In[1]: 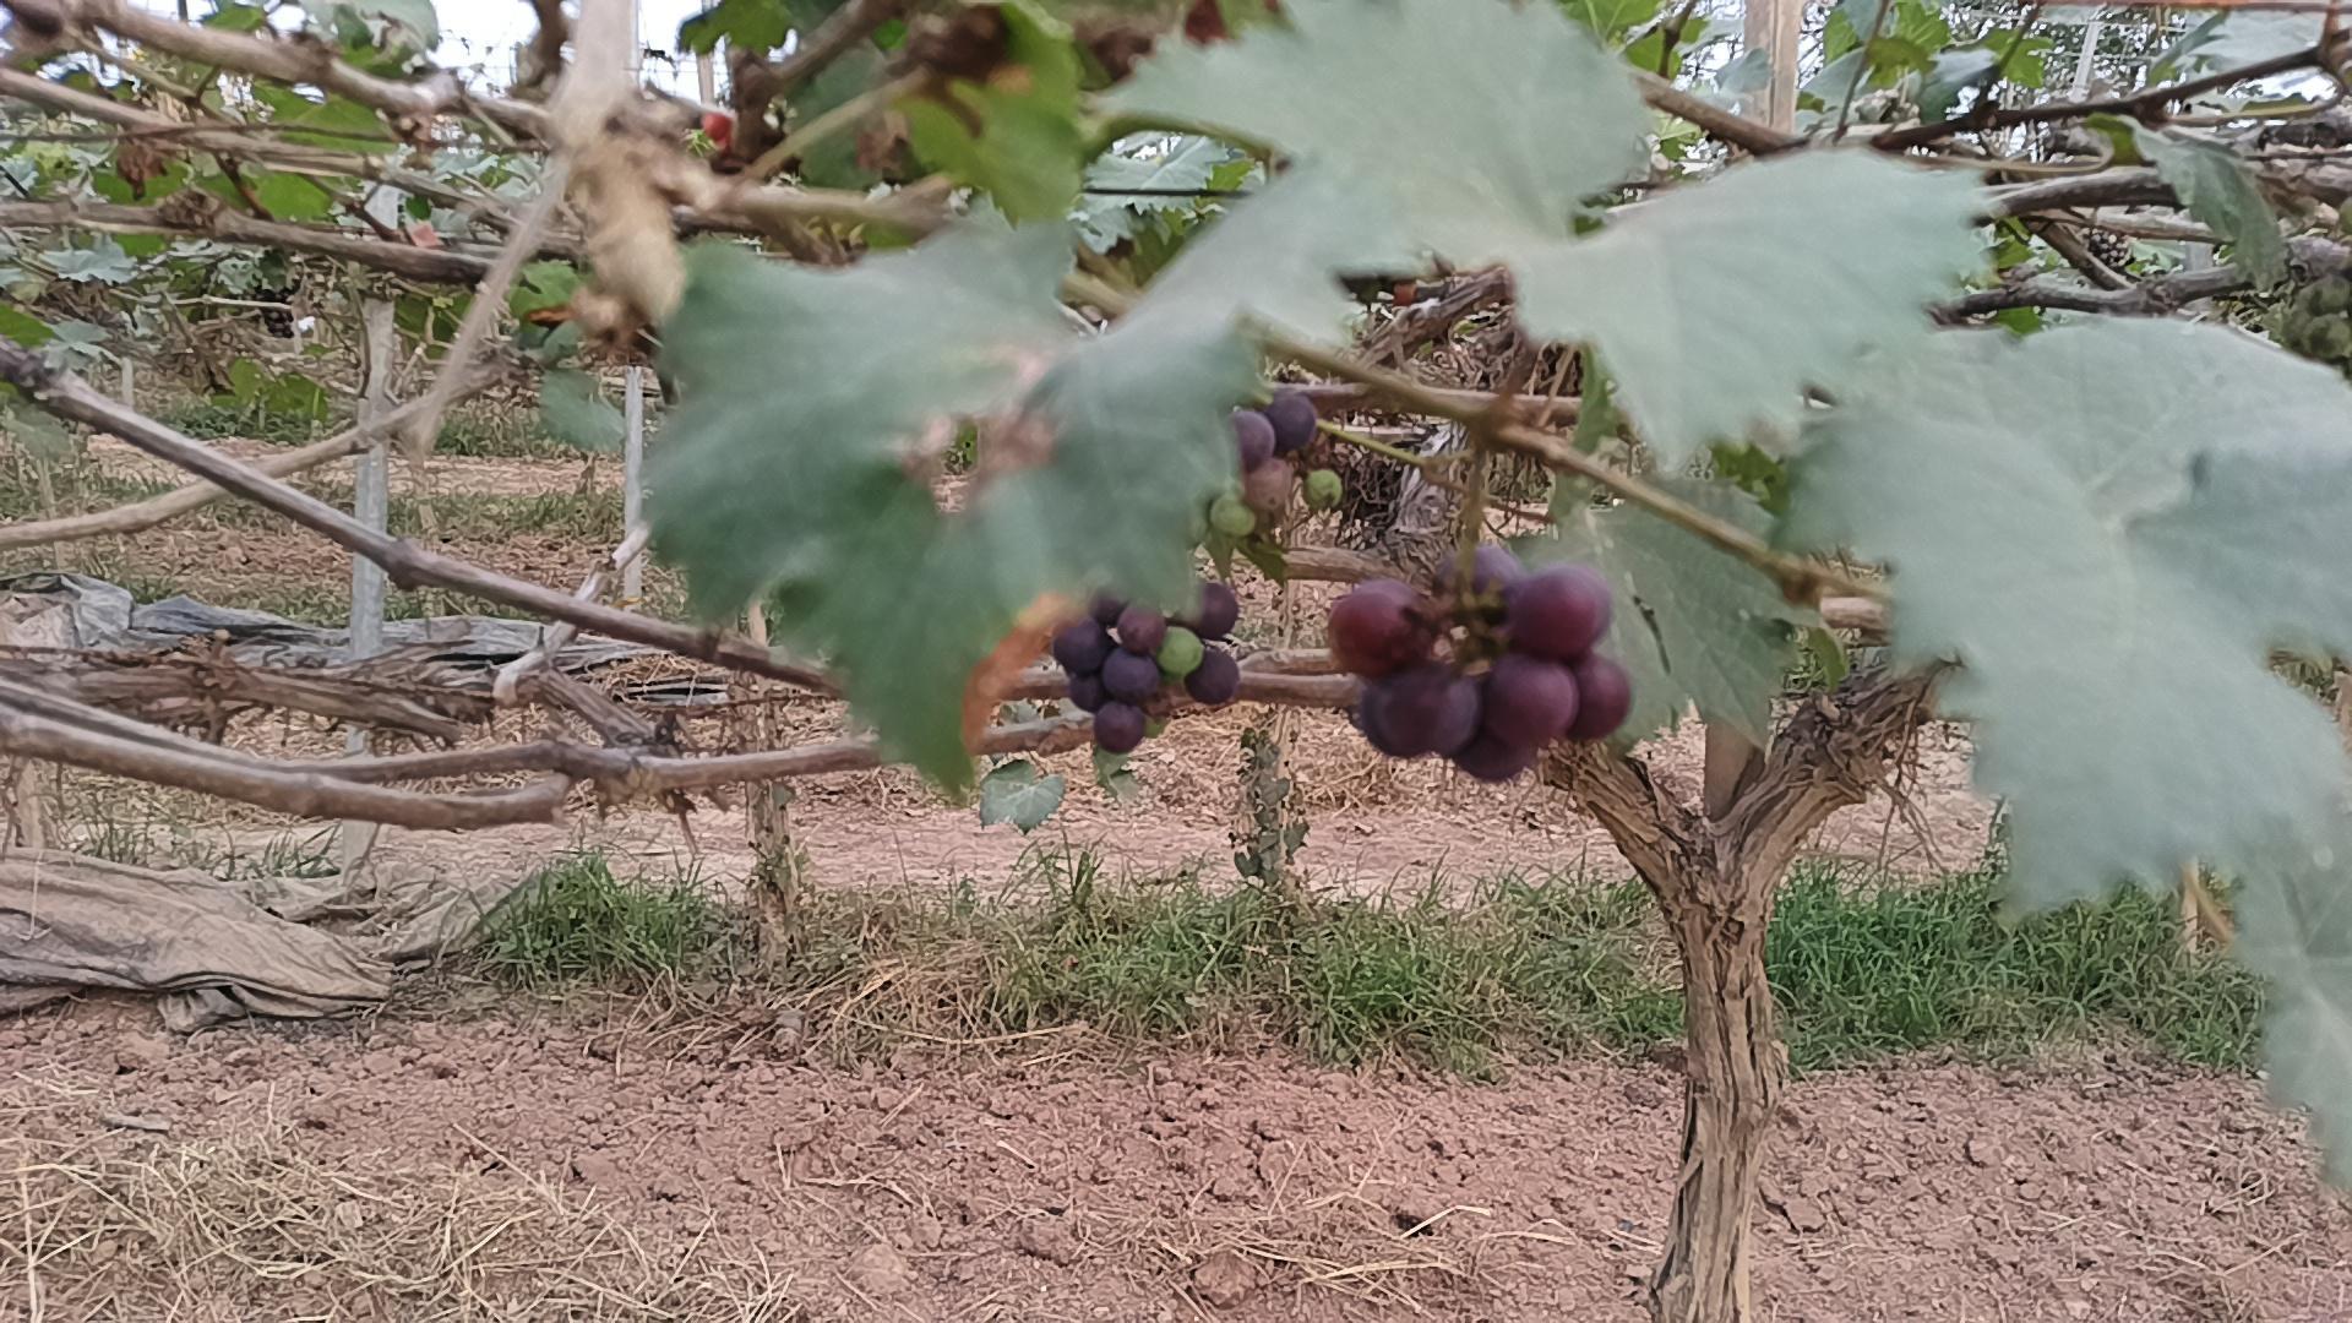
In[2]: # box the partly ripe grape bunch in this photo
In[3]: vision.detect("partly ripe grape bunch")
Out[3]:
[1052,392,1341,759]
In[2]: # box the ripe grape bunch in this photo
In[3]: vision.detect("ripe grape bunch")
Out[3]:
[1327,544,1632,780]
